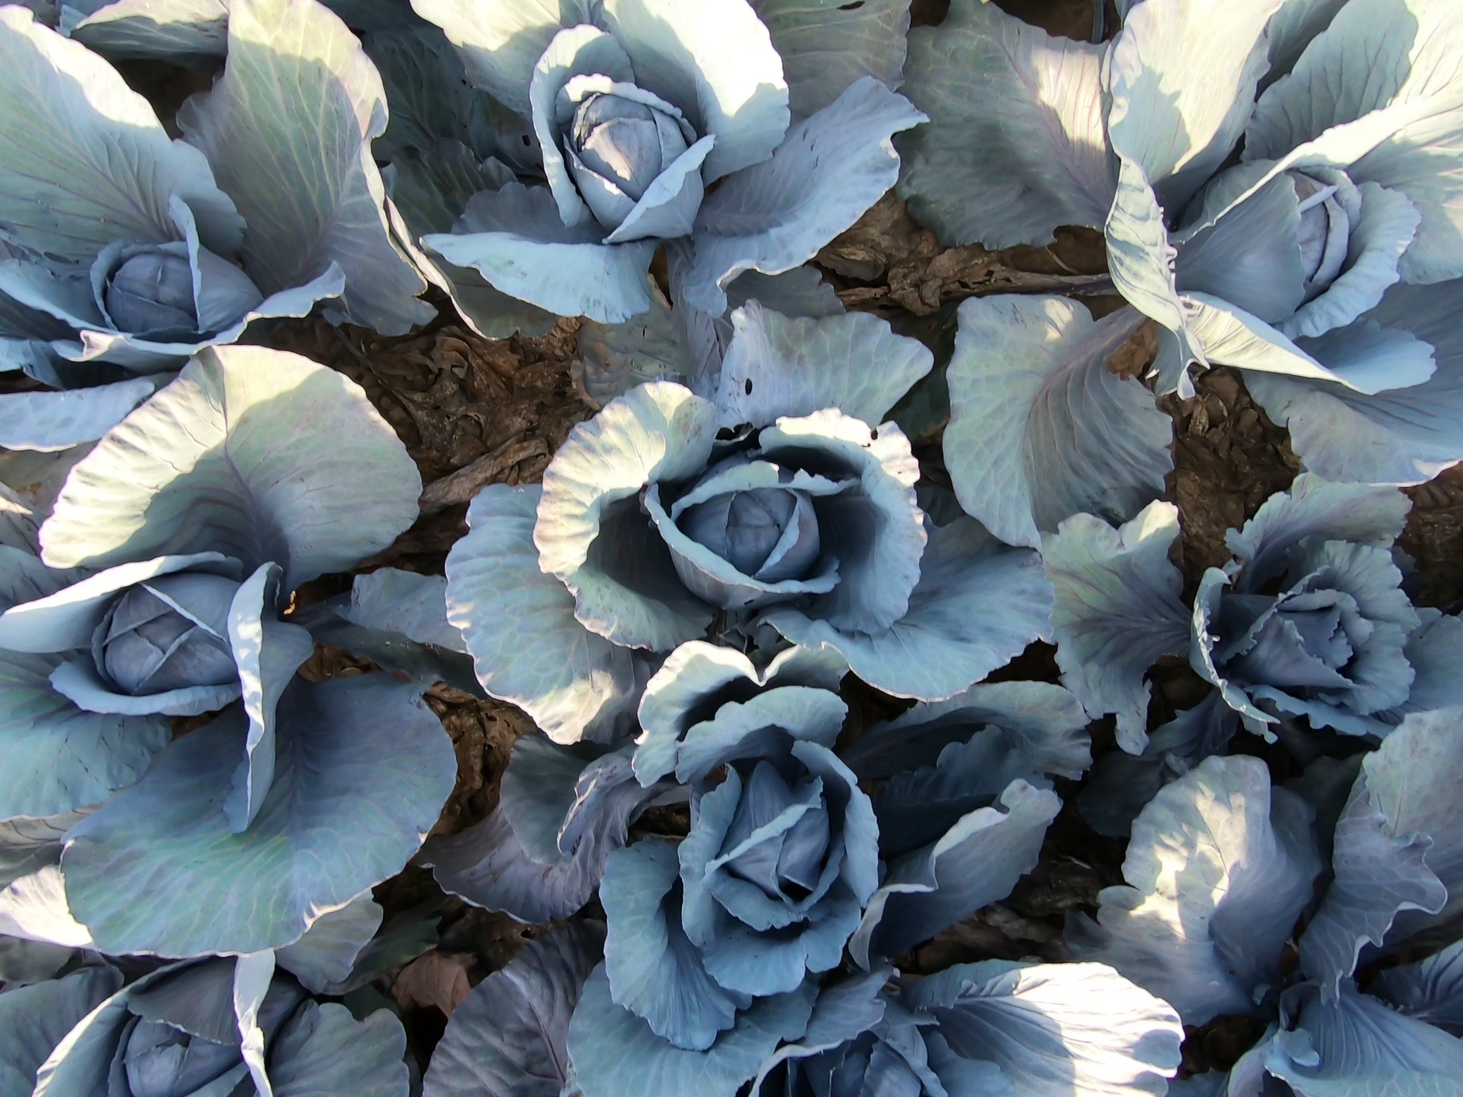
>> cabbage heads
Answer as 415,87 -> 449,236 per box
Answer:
120,977 -> 258,1095
1201,168 -> 1349,318
101,569 -> 258,695
720,779 -> 820,894
805,997 -> 923,1093
571,84 -> 685,219
1237,603 -> 1347,686
695,460 -> 820,579
104,241 -> 242,347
